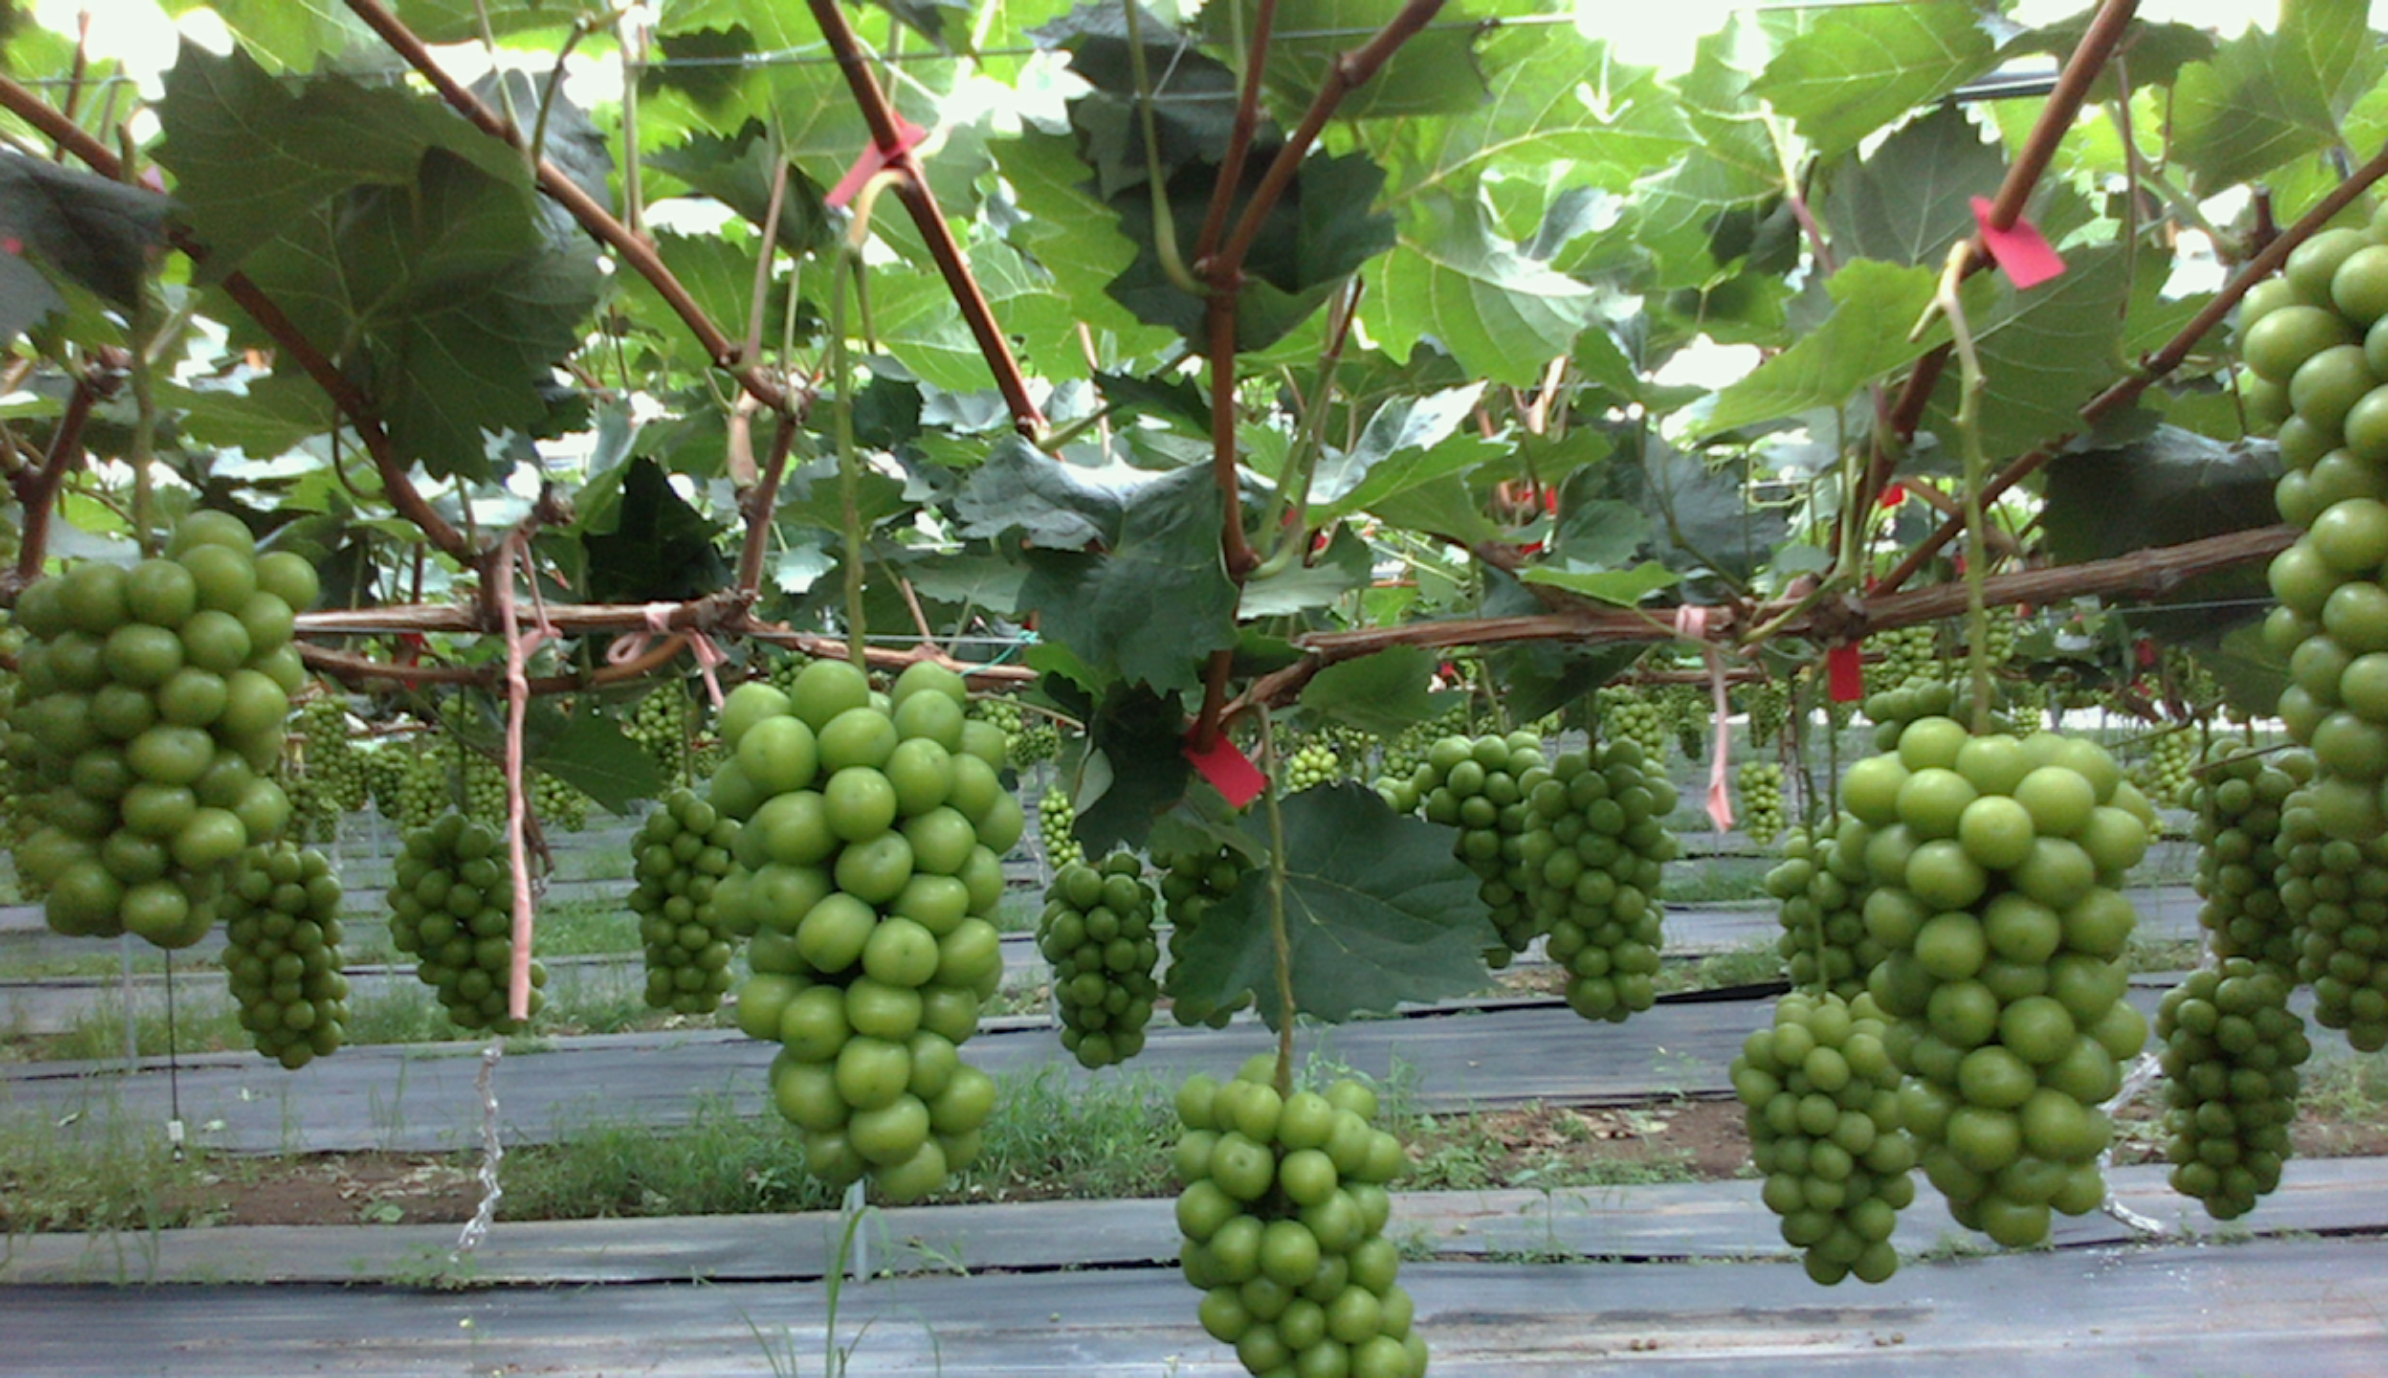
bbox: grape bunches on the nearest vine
[1837,716,2156,1248]
[1175,1055,1426,1376]
[15,511,318,949]
[2239,201,2386,842]
[708,656,1020,1204]
[1730,991,1917,1288]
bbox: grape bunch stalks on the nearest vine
[1221,702,1293,1100]
[832,168,907,674]
[117,98,159,563]
[1940,239,1990,737]
[1799,653,1829,1007]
